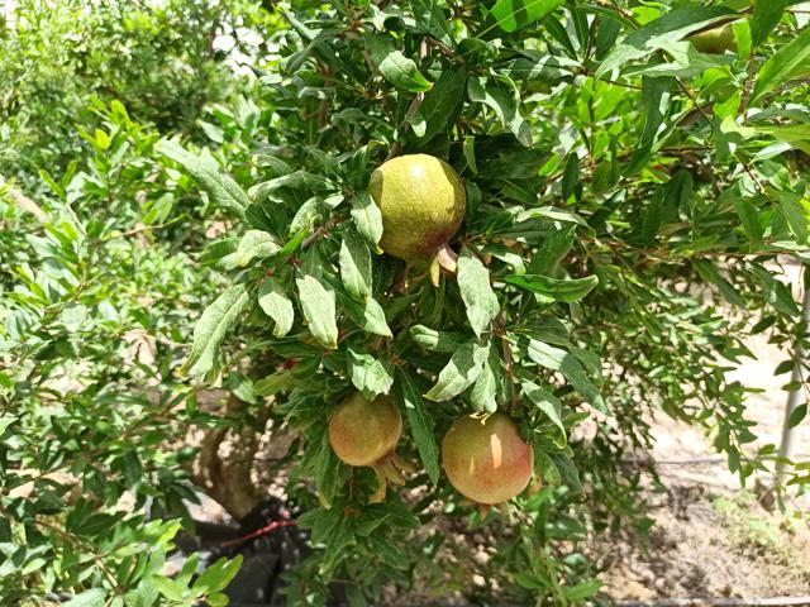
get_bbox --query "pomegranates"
[329,392,418,500]
[442,411,533,522]
[366,153,467,288]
